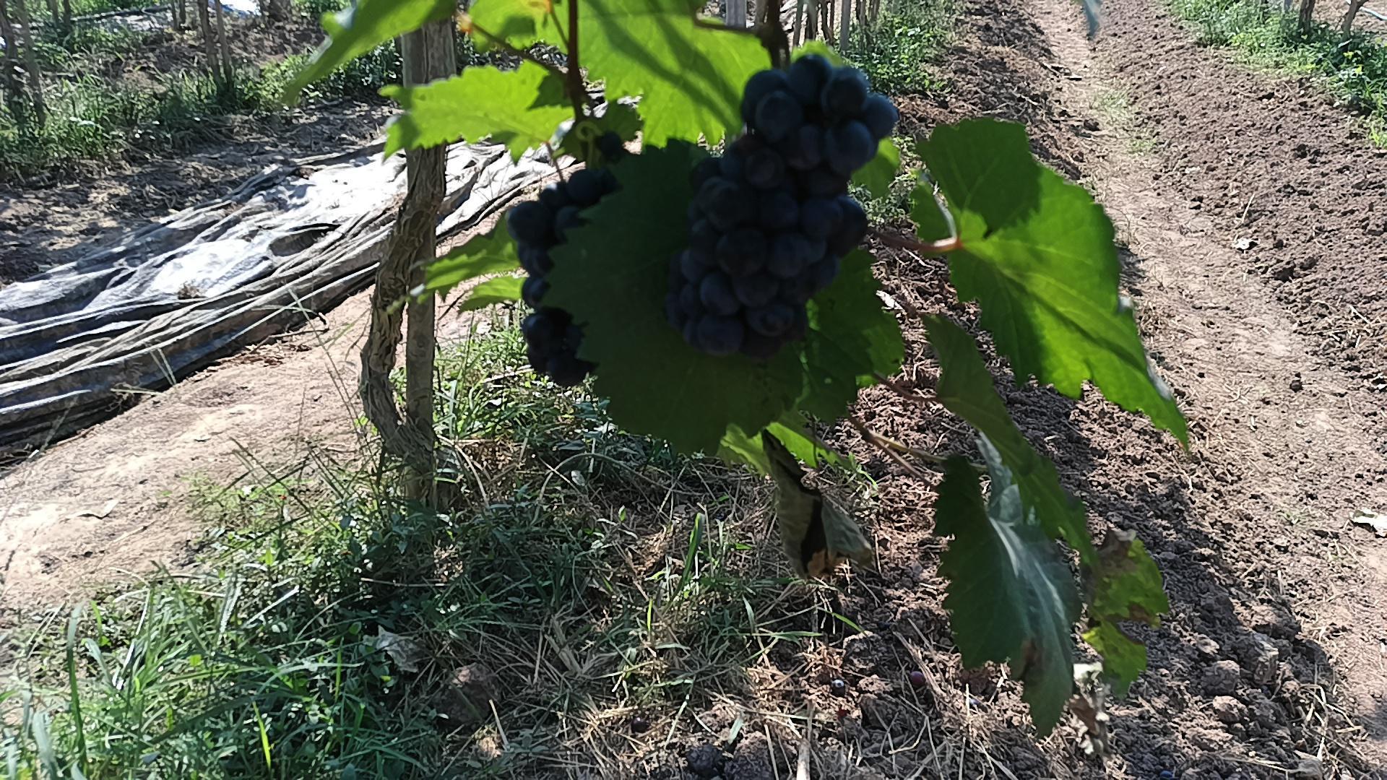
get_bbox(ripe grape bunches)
[667,54,897,356]
[508,170,619,386]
